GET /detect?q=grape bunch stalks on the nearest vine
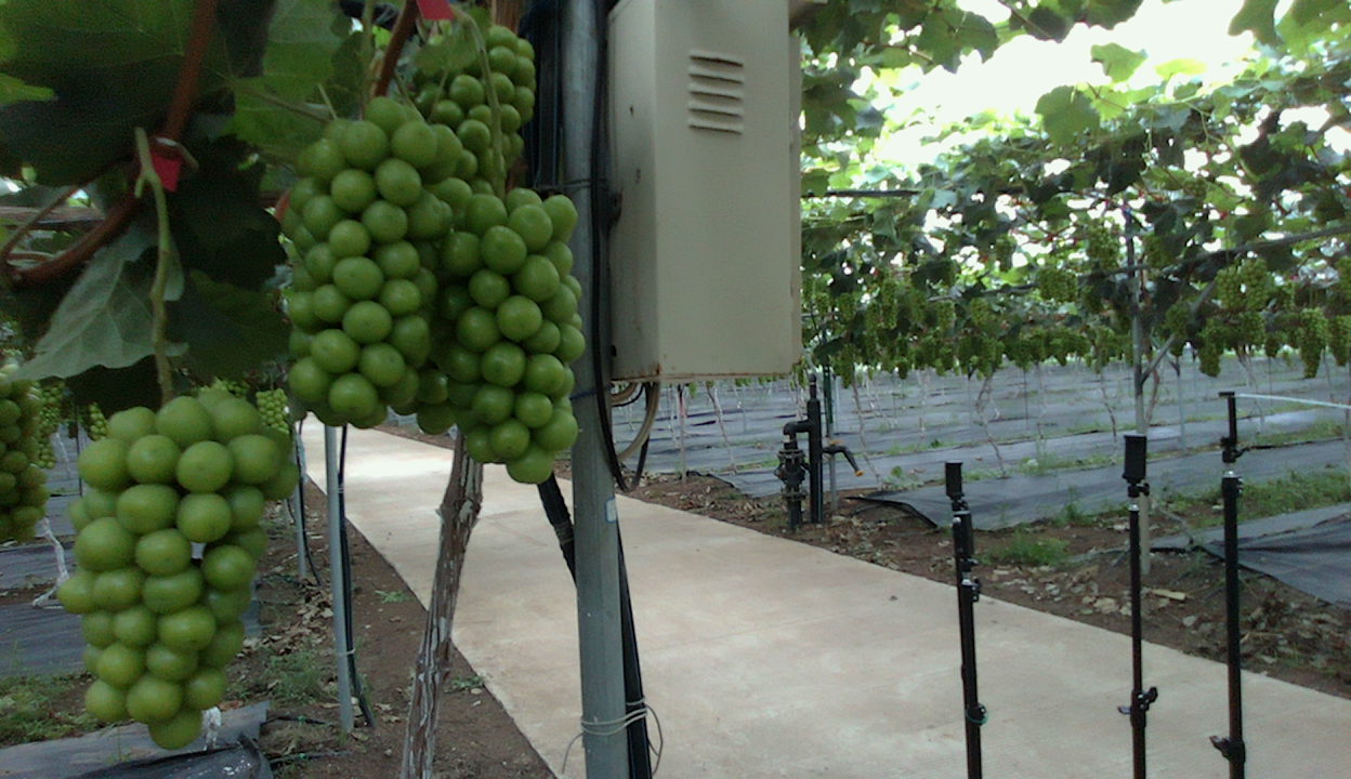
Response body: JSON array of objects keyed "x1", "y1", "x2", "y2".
[
  {"x1": 449, "y1": 4, "x2": 506, "y2": 200},
  {"x1": 358, "y1": 1, "x2": 377, "y2": 115},
  {"x1": 134, "y1": 124, "x2": 174, "y2": 405}
]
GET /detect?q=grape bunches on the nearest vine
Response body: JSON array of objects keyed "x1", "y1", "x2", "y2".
[
  {"x1": 57, "y1": 388, "x2": 299, "y2": 749},
  {"x1": 281, "y1": 95, "x2": 470, "y2": 428},
  {"x1": 416, "y1": 189, "x2": 586, "y2": 483}
]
